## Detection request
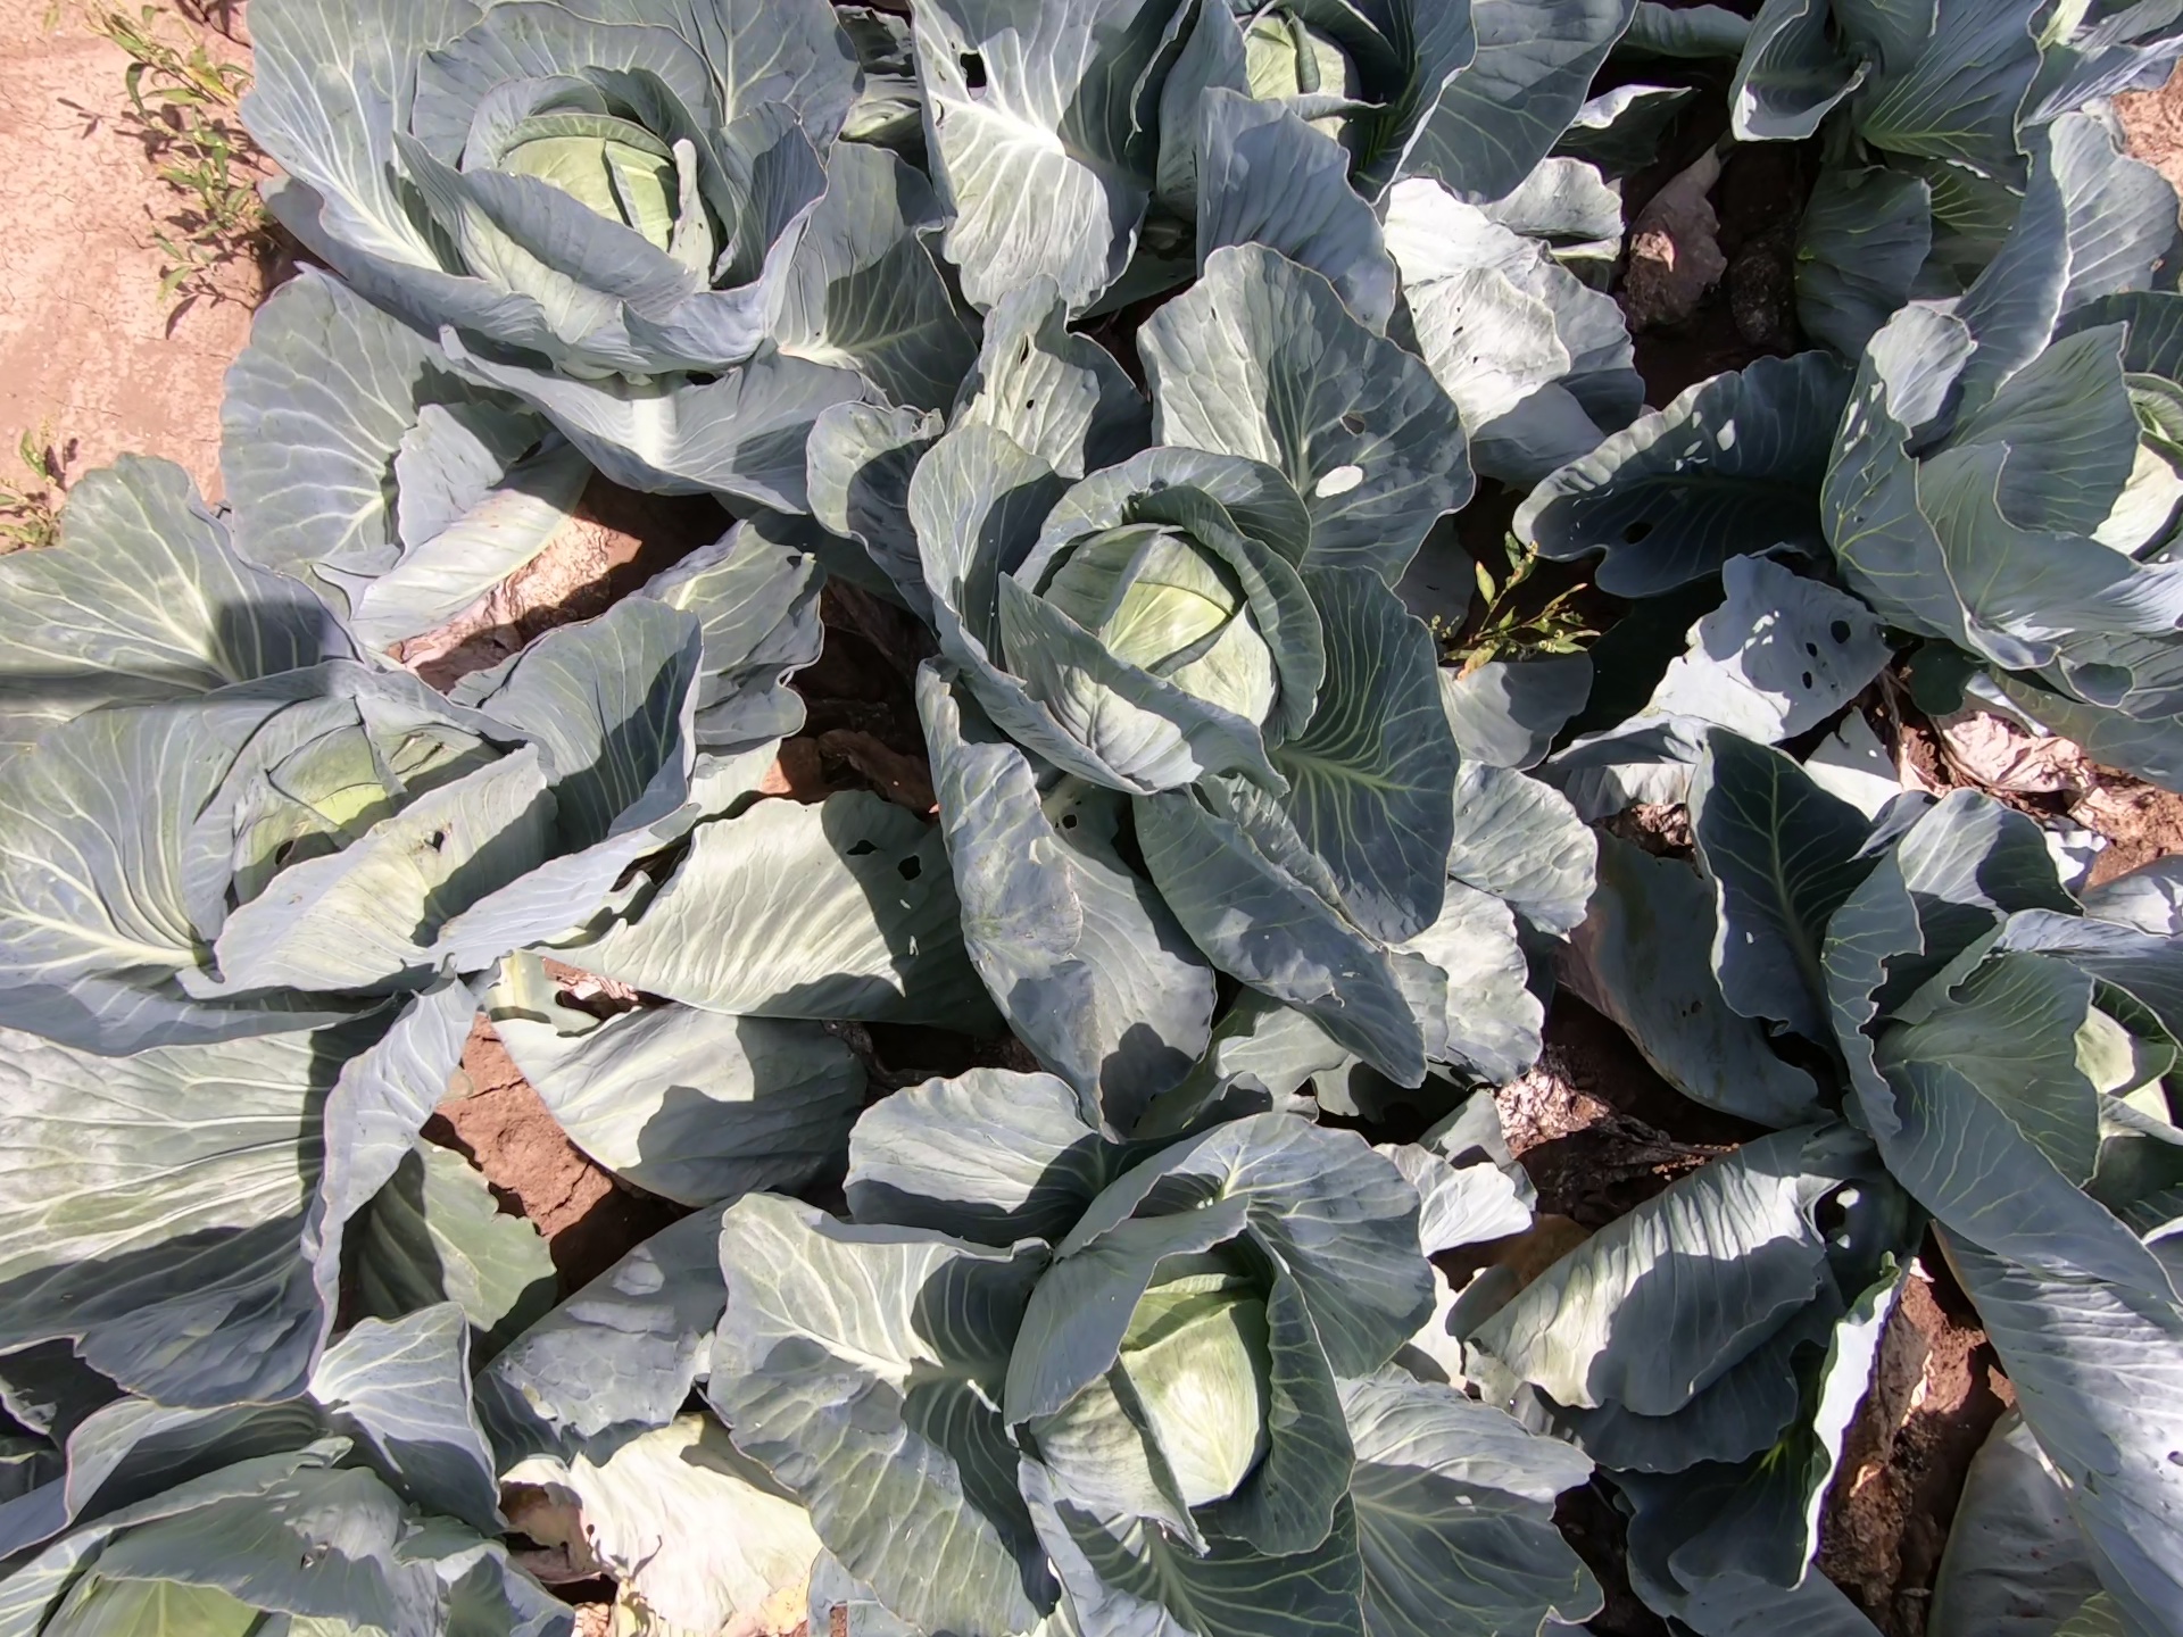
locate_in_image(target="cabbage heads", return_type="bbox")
[38,1462,448,1636]
[1943,384,2180,595]
[1177,9,1368,219]
[1898,973,2172,1241]
[225,716,541,990]
[1020,1227,1300,1522]
[478,118,709,350]
[1036,520,1289,774]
